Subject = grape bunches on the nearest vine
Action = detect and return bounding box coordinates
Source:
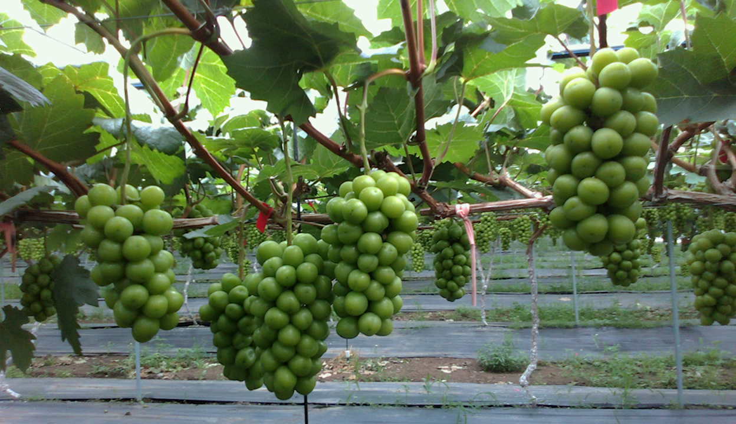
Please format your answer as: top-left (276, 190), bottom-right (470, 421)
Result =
top-left (321, 170), bottom-right (419, 339)
top-left (83, 183), bottom-right (185, 343)
top-left (199, 272), bottom-right (264, 389)
top-left (251, 233), bottom-right (337, 400)
top-left (541, 47), bottom-right (658, 257)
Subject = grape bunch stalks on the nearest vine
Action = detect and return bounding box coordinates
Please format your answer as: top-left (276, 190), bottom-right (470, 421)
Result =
top-left (238, 203), bottom-right (252, 280)
top-left (359, 68), bottom-right (410, 175)
top-left (120, 27), bottom-right (192, 204)
top-left (587, 1), bottom-right (596, 58)
top-left (278, 115), bottom-right (293, 247)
